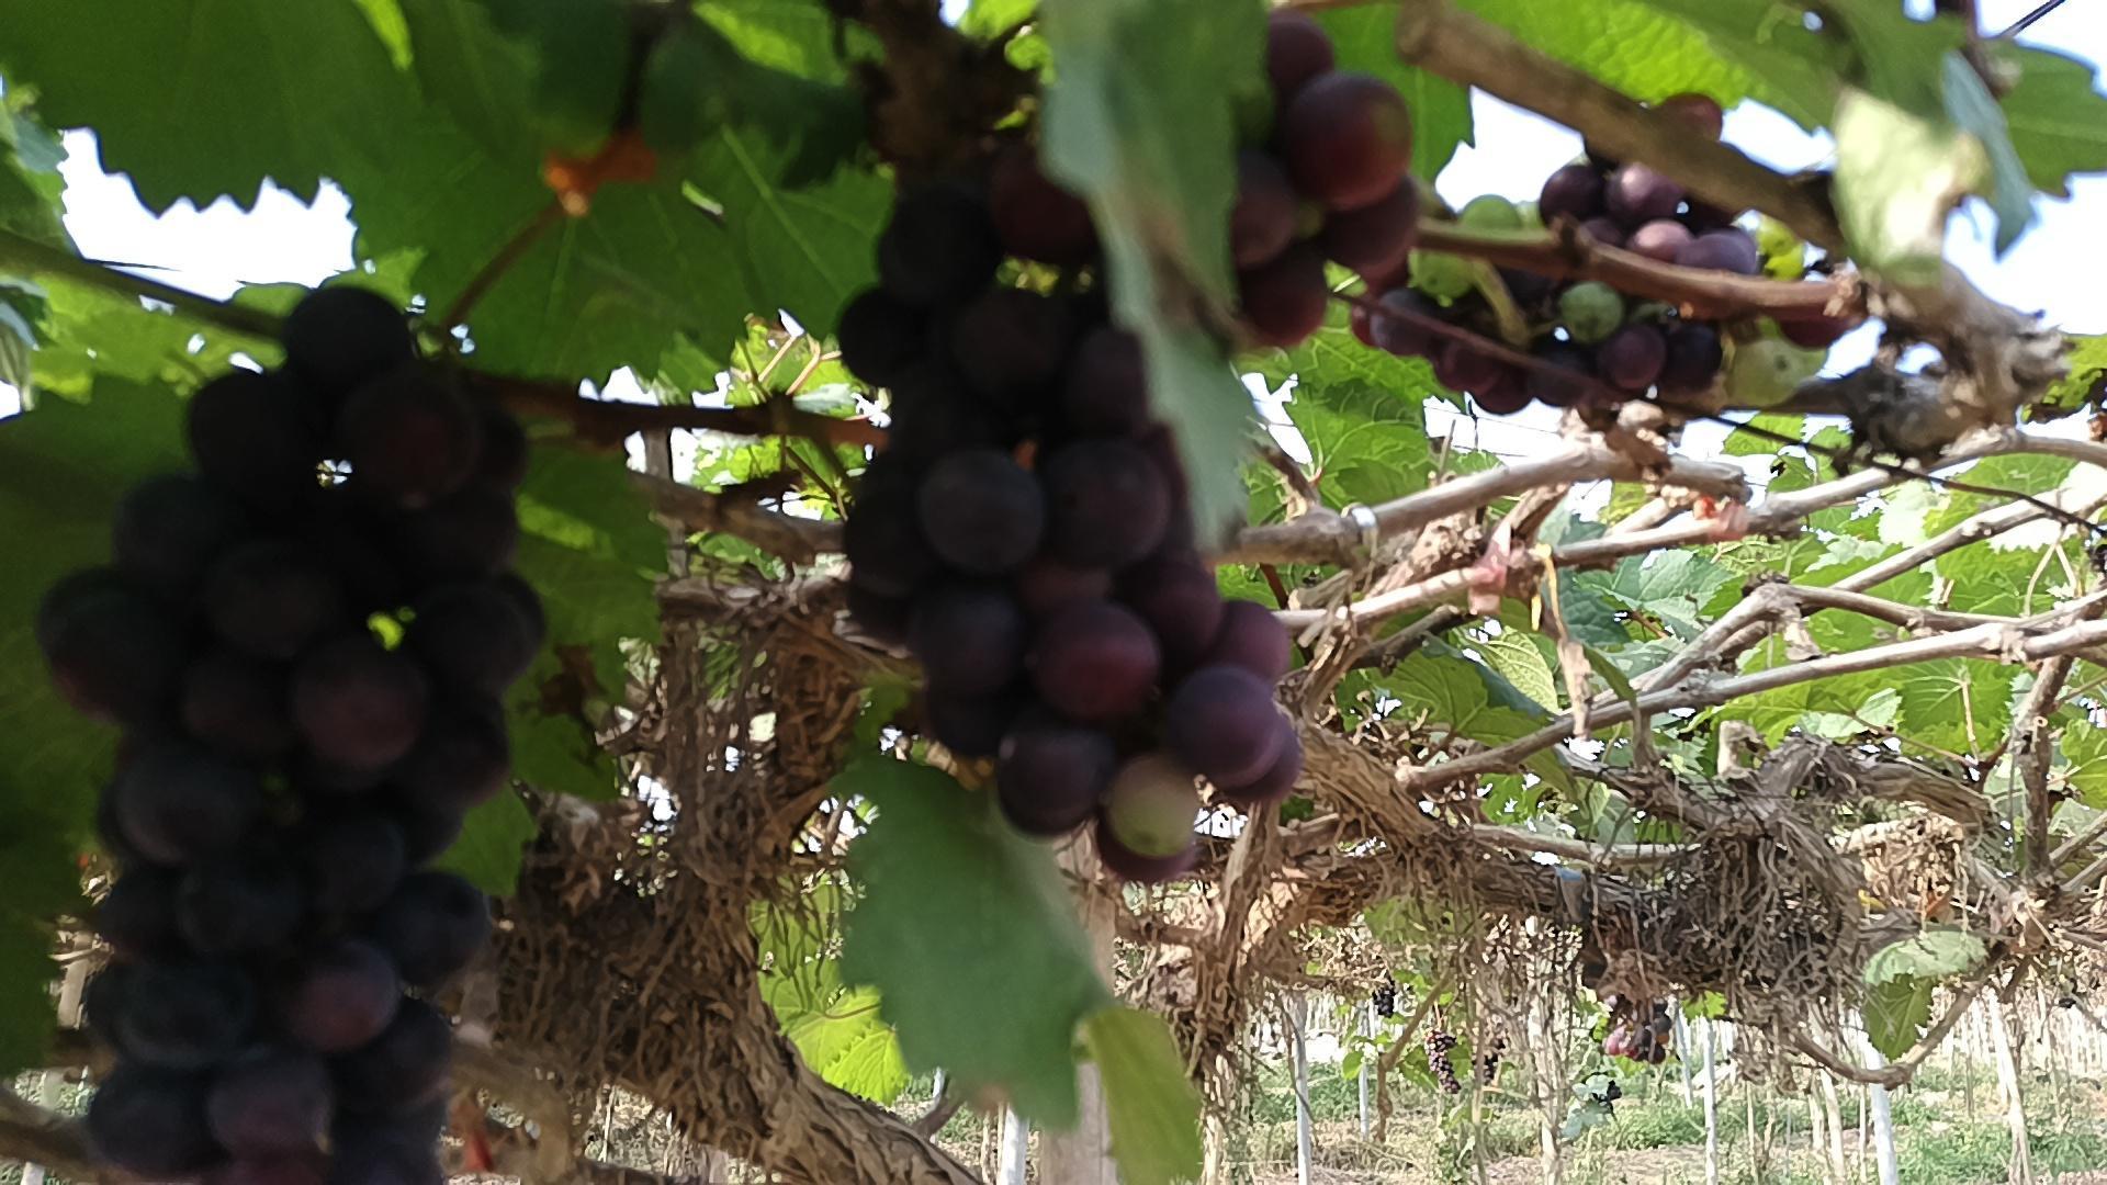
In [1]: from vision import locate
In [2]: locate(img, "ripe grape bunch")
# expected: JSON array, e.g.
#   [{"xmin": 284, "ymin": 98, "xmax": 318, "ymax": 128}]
[{"xmin": 37, "ymin": 287, "xmax": 548, "ymax": 1184}]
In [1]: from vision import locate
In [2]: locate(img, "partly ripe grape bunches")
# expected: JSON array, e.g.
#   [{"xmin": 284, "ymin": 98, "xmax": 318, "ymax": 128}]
[
  {"xmin": 1233, "ymin": 10, "xmax": 1419, "ymax": 346},
  {"xmin": 827, "ymin": 0, "xmax": 1300, "ymax": 881},
  {"xmin": 1352, "ymin": 142, "xmax": 1864, "ymax": 416}
]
